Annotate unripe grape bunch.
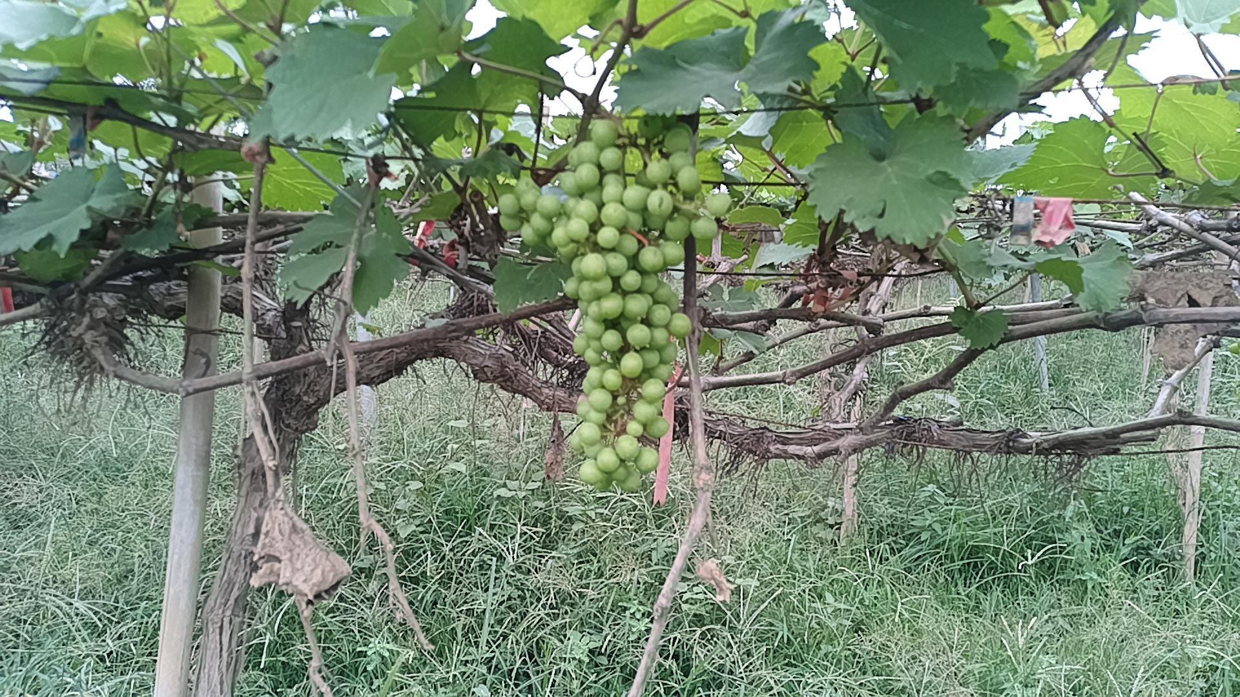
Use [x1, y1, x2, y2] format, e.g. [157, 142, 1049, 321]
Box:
[497, 114, 733, 493]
